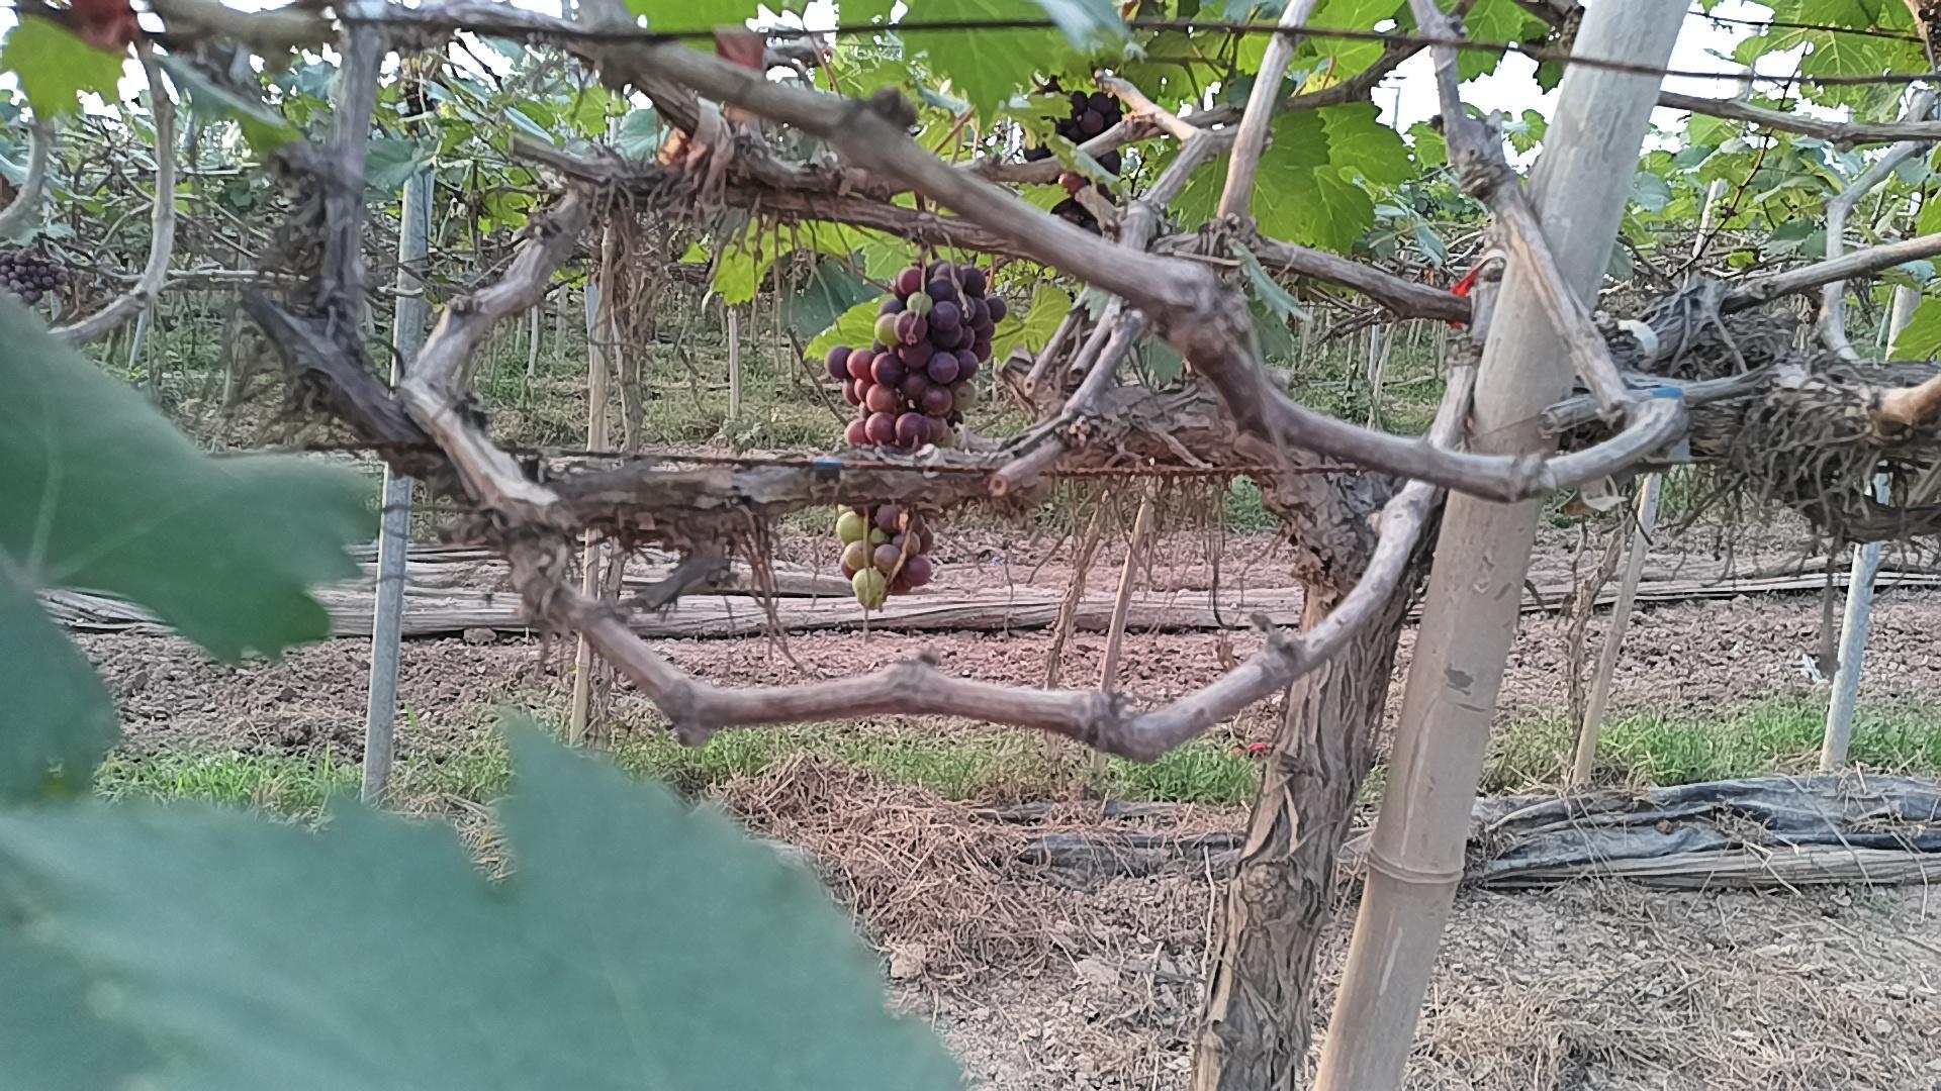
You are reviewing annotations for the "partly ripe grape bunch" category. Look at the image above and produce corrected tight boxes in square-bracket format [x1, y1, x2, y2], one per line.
[823, 260, 1008, 609]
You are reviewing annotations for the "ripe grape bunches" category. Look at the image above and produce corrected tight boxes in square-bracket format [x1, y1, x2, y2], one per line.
[1024, 83, 1123, 235]
[0, 249, 69, 305]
